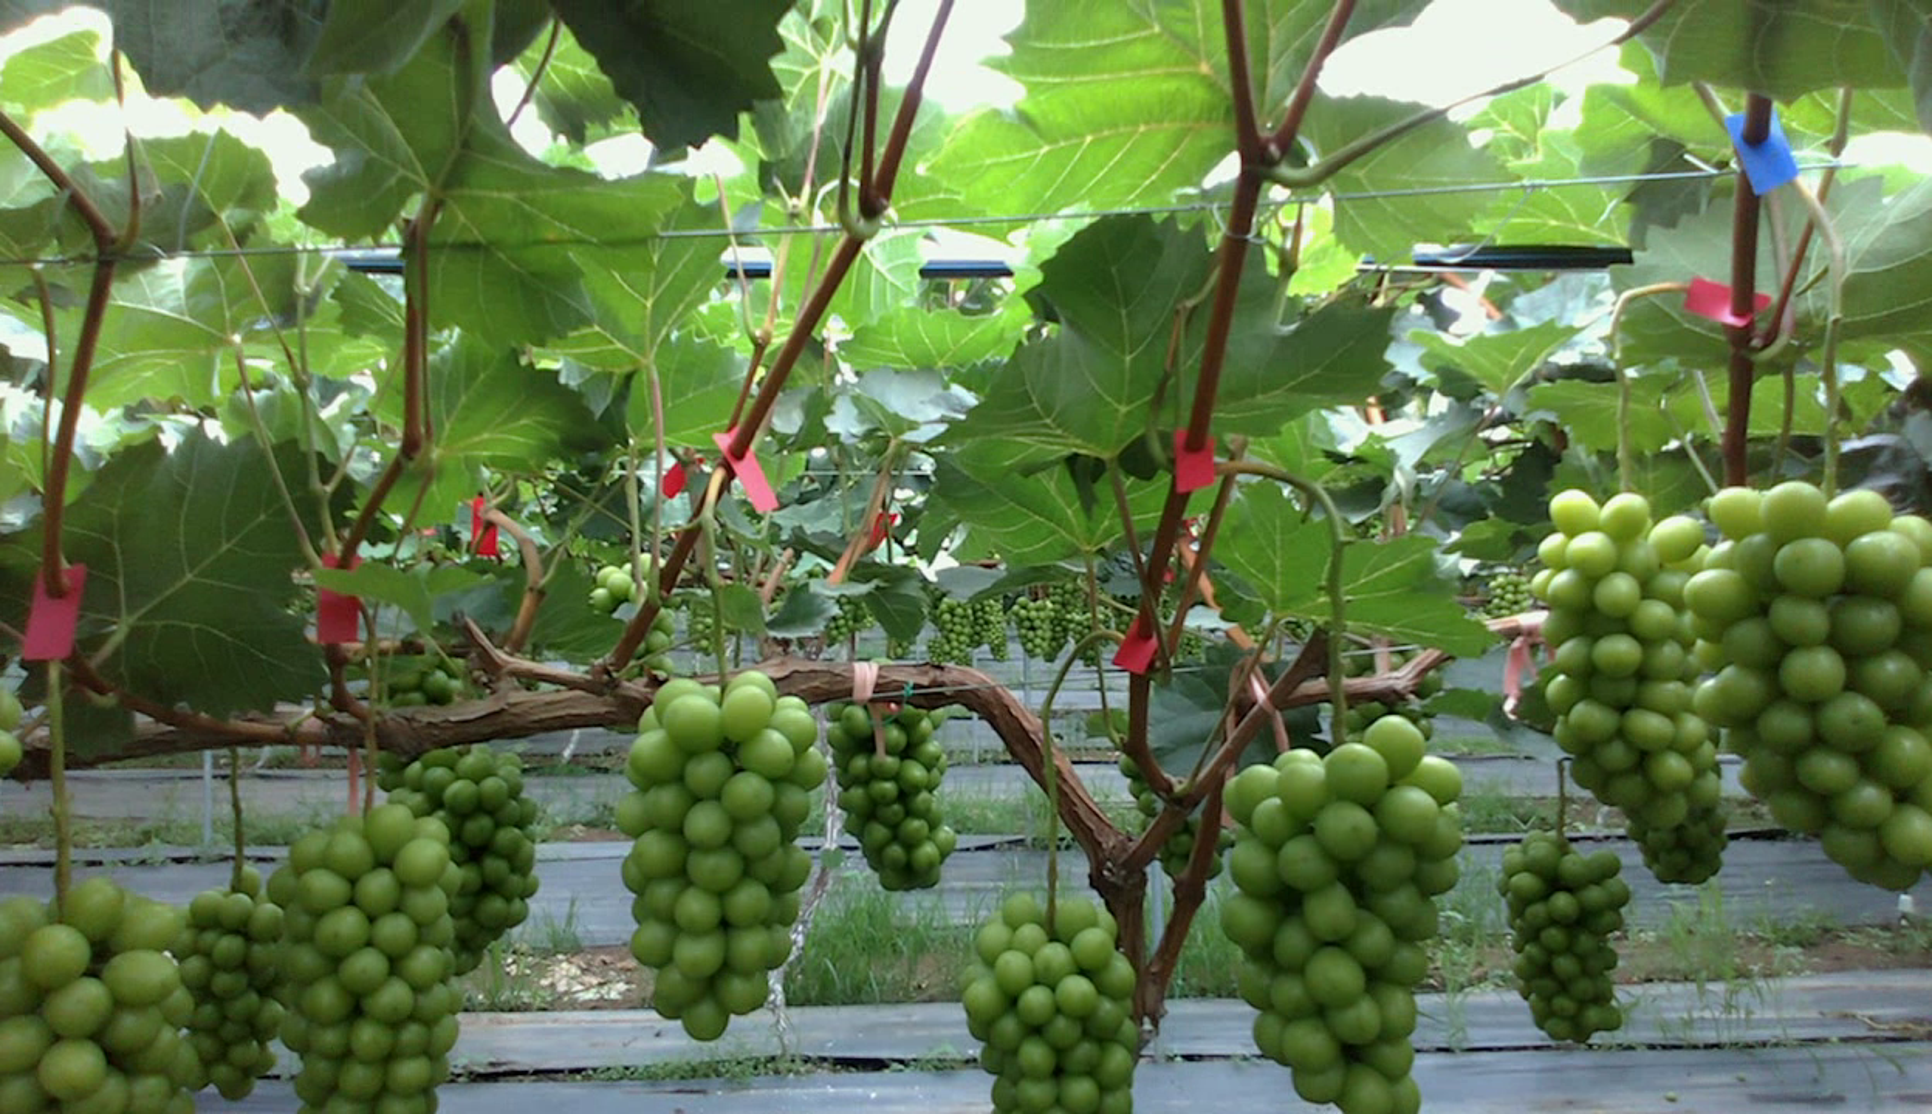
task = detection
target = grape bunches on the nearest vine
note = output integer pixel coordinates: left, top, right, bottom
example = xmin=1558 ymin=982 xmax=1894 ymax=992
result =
xmin=266 ymin=805 xmax=466 ymax=1112
xmin=616 ymin=668 xmax=830 ymax=1041
xmin=1220 ymin=715 xmax=1464 ymax=1112
xmin=0 ymin=877 xmax=198 ymax=1112
xmin=958 ymin=890 xmax=1138 ymax=1112
xmin=1683 ymin=483 xmax=1930 ymax=893
xmin=1531 ymin=489 xmax=1721 ymax=831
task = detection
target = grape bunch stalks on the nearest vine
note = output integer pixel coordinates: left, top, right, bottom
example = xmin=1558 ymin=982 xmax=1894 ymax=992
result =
xmin=700 ymin=466 xmax=728 ymax=698
xmin=358 ymin=599 xmax=379 ymax=817
xmin=48 ymin=661 xmax=68 ymax=925
xmin=1042 ymin=628 xmax=1125 ymax=942
xmin=1215 ymin=460 xmax=1347 ymax=747
xmin=1788 ymin=178 xmax=1841 ymax=501
xmin=1604 ymin=282 xmax=1687 ymax=490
